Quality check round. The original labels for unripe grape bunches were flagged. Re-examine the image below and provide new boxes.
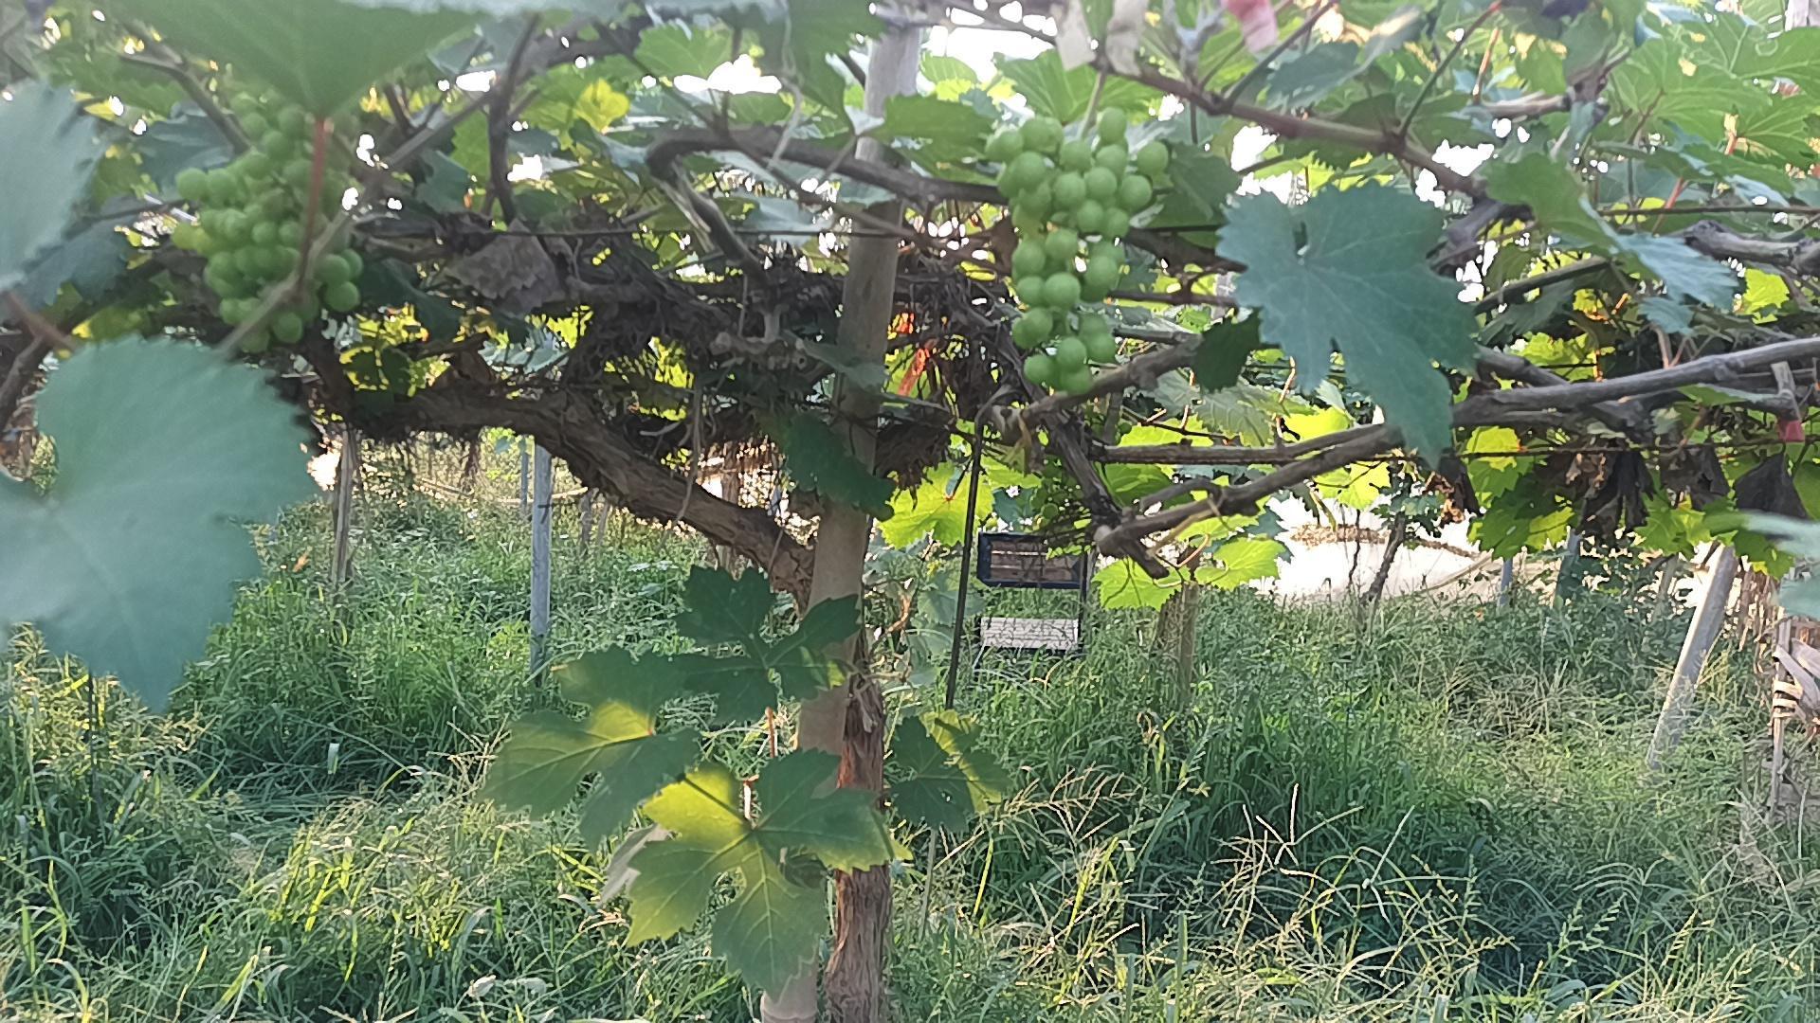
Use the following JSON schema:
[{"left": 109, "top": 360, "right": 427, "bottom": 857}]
[
  {"left": 986, "top": 109, "right": 1169, "bottom": 396},
  {"left": 1029, "top": 454, "right": 1083, "bottom": 548},
  {"left": 172, "top": 86, "right": 365, "bottom": 352}
]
